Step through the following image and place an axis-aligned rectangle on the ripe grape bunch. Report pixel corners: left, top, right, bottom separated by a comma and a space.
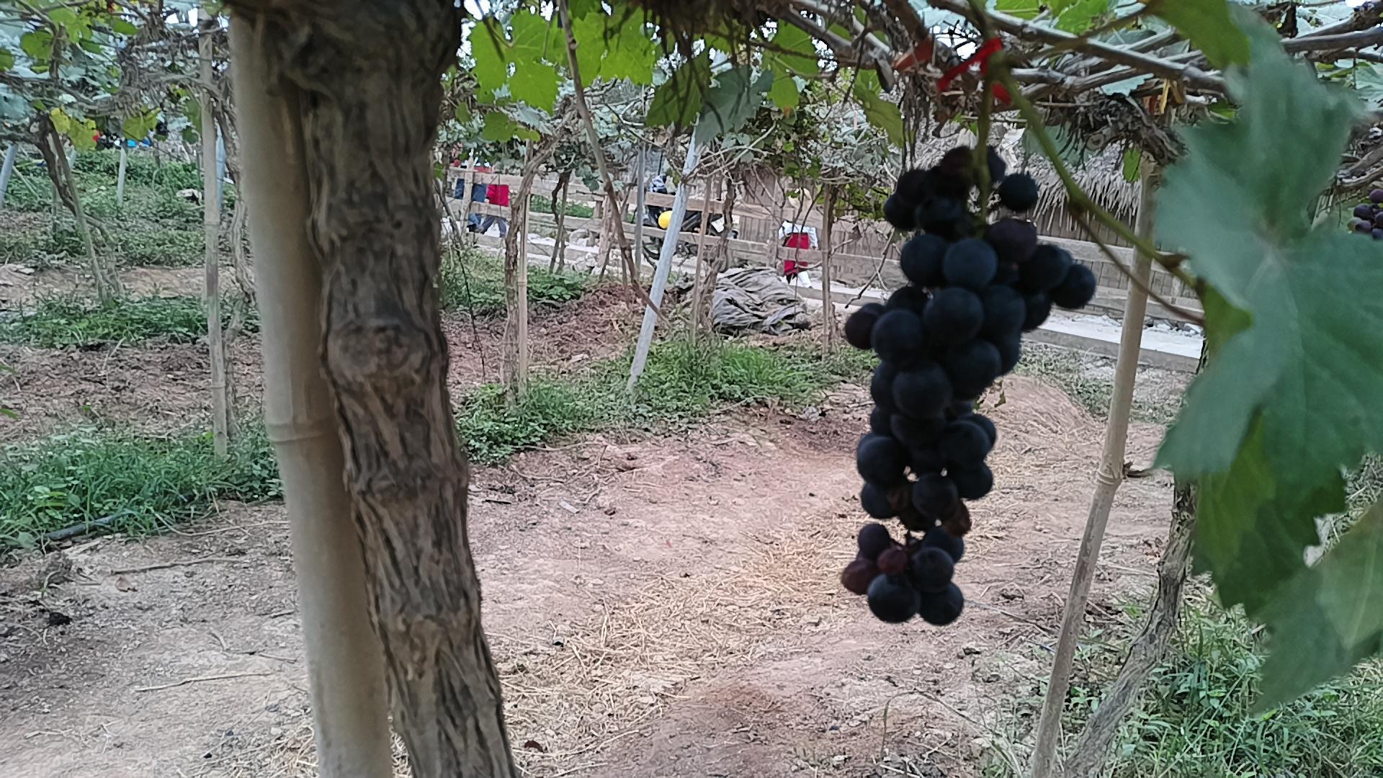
841, 146, 1095, 625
